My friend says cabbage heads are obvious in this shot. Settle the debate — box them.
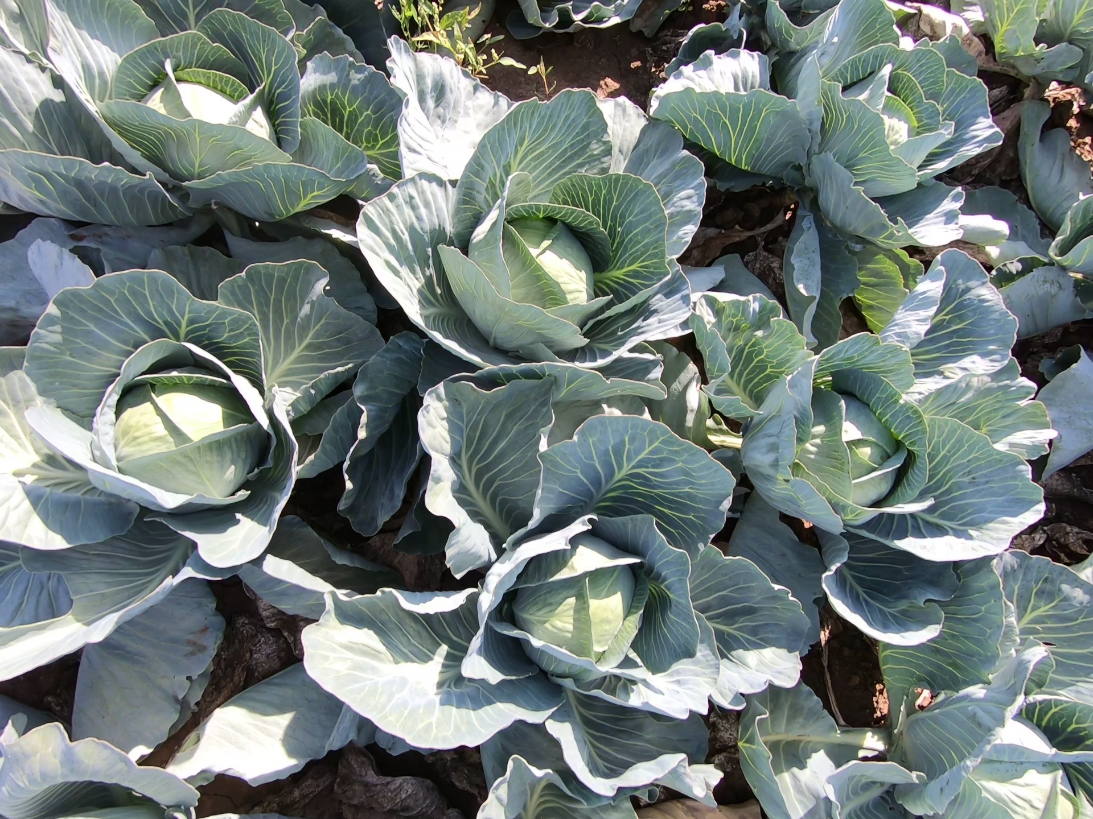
[933,709,1081,816]
[774,394,899,515]
[513,540,634,668]
[141,77,278,173]
[840,90,914,166]
[482,213,595,329]
[108,367,265,504]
